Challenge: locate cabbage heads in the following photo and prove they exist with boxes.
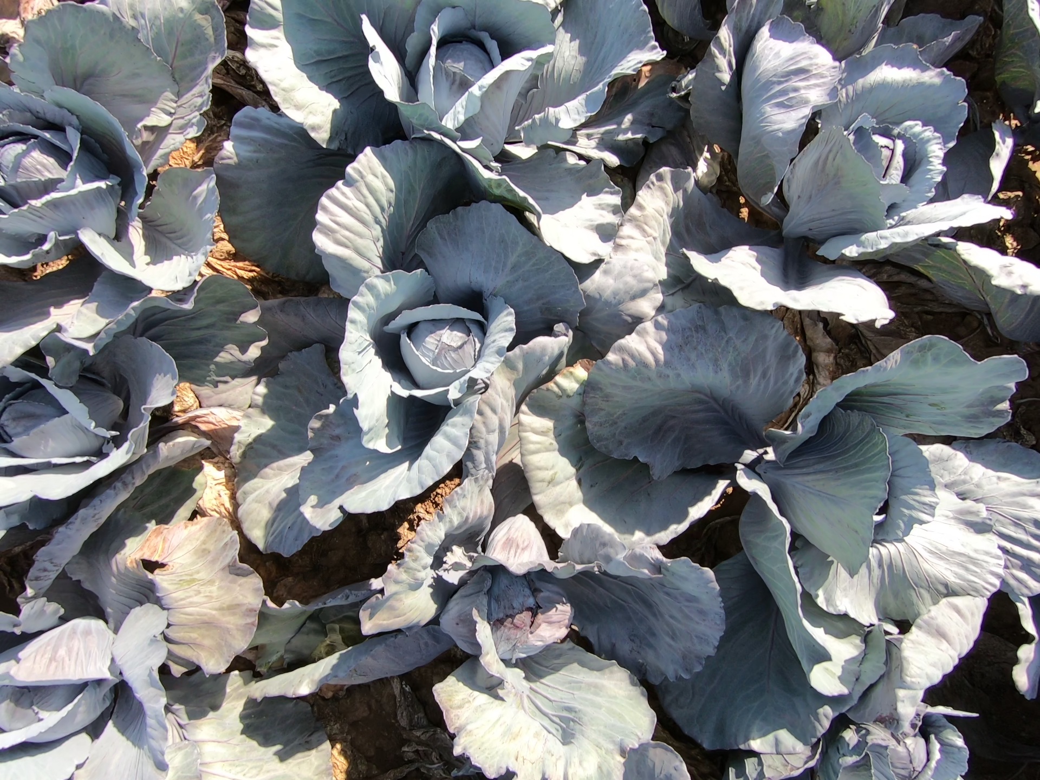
[827,134,902,213]
[2,383,113,458]
[403,314,487,392]
[843,712,927,778]
[0,637,105,743]
[420,42,498,126]
[0,138,95,226]
[457,569,560,658]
